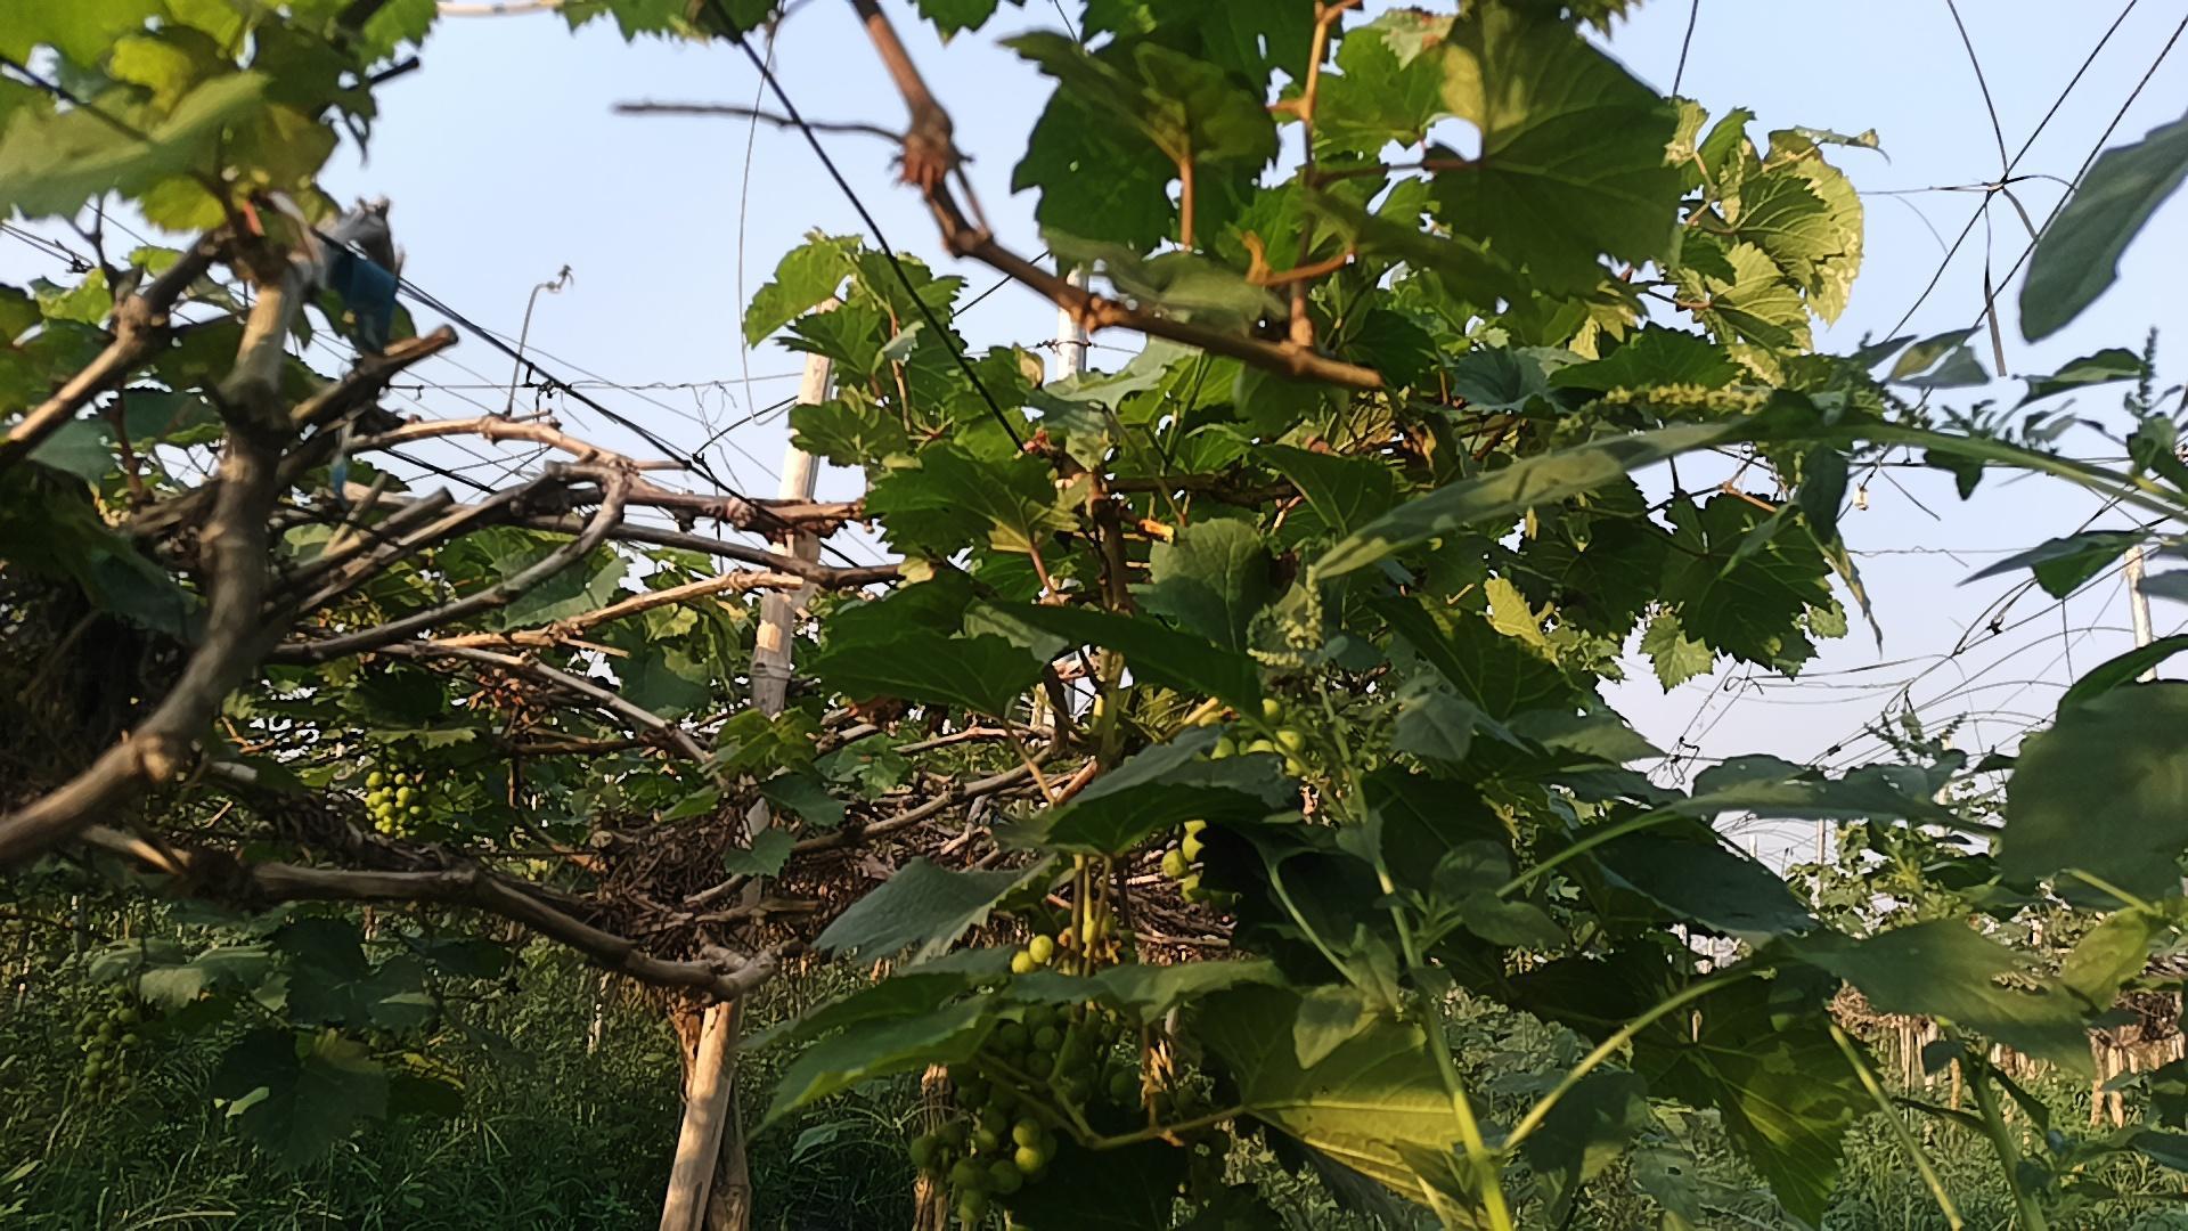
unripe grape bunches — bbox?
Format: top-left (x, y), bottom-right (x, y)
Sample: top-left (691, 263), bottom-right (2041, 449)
top-left (1162, 694), bottom-right (1309, 912)
top-left (364, 764), bottom-right (433, 838)
top-left (912, 914), bottom-right (1231, 1223)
